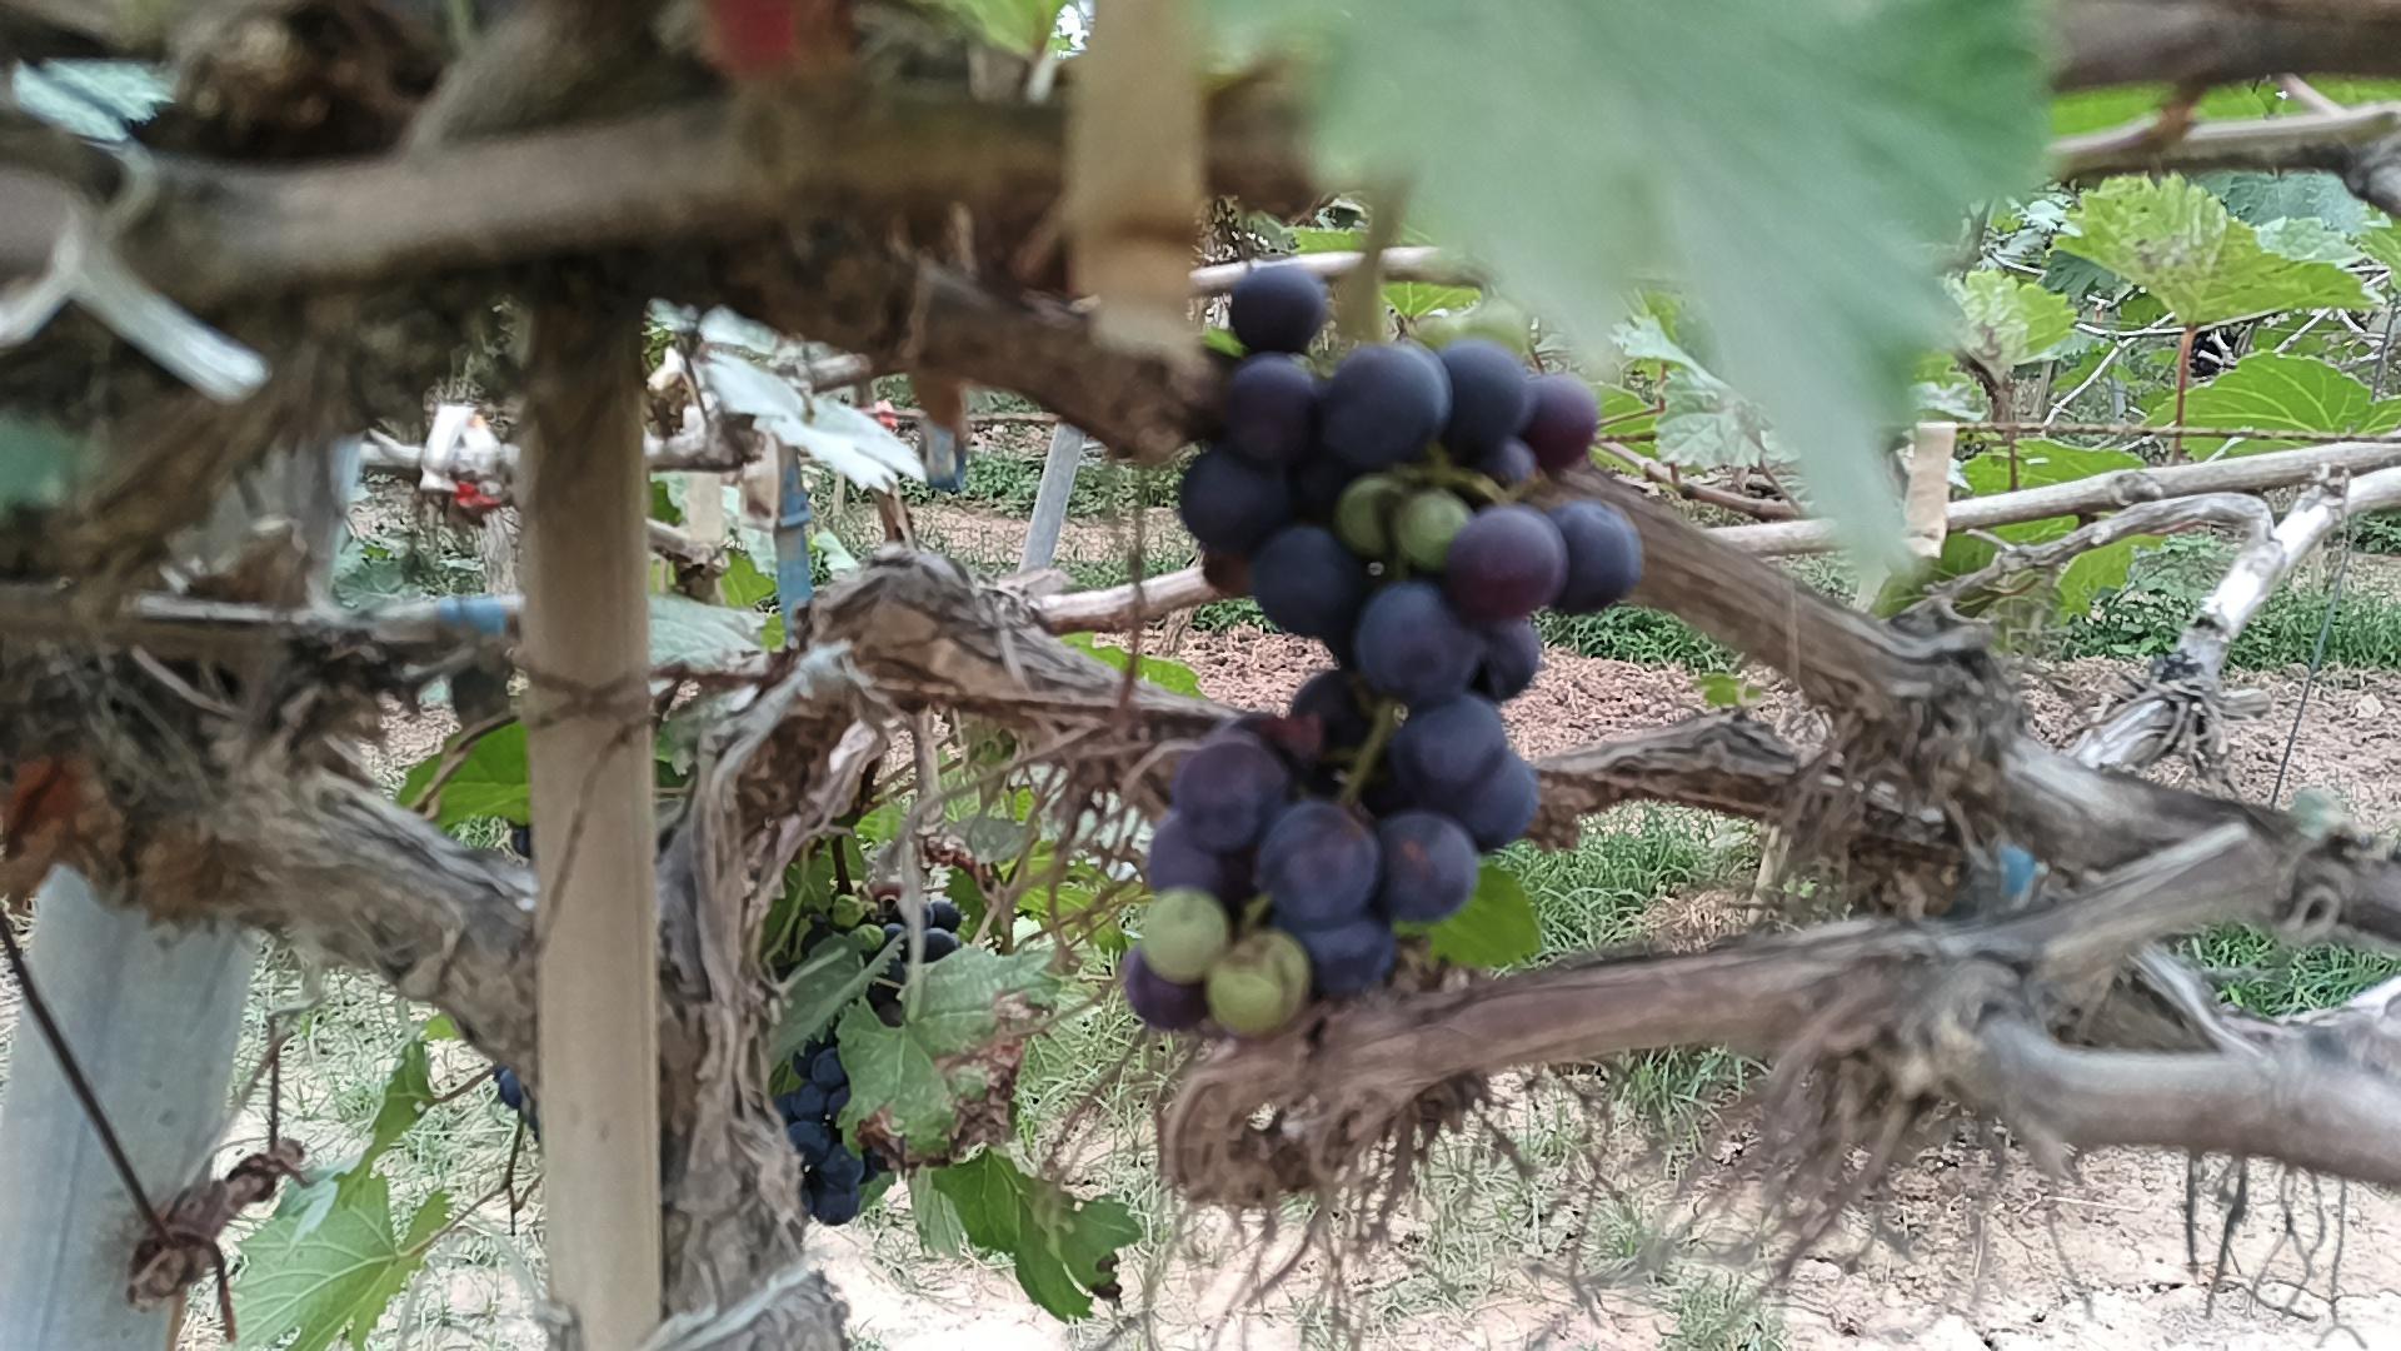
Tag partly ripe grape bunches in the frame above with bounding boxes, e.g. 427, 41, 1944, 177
1122, 266, 1641, 1032
773, 878, 967, 1226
